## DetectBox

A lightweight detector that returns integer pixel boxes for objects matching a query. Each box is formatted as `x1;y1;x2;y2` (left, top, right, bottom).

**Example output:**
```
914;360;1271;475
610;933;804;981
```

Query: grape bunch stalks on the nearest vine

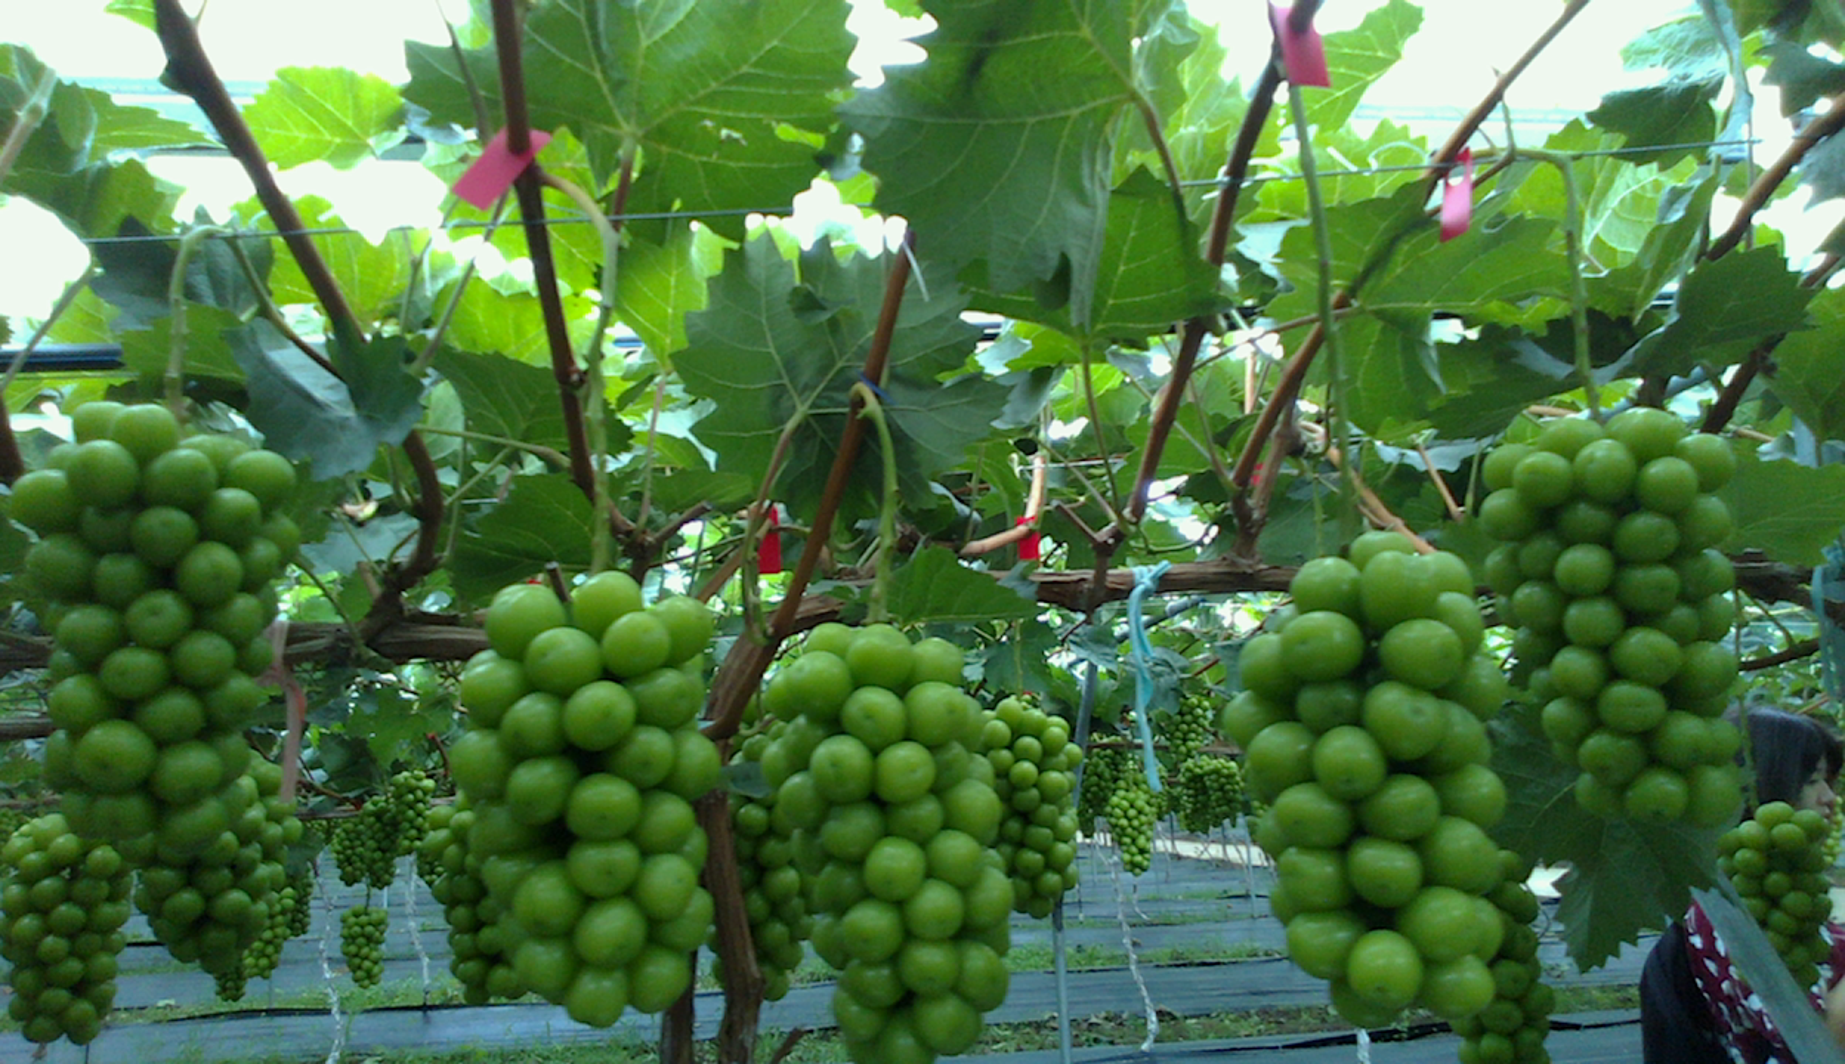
1517;149;1604;420
857;389;897;622
166;225;225;415
557;185;615;570
1289;89;1356;557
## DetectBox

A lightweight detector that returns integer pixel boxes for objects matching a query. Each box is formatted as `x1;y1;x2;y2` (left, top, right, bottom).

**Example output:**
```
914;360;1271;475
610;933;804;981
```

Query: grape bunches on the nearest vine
3;403;299;862
763;621;1014;1061
451;569;721;1027
1220;532;1506;1029
1477;408;1743;831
